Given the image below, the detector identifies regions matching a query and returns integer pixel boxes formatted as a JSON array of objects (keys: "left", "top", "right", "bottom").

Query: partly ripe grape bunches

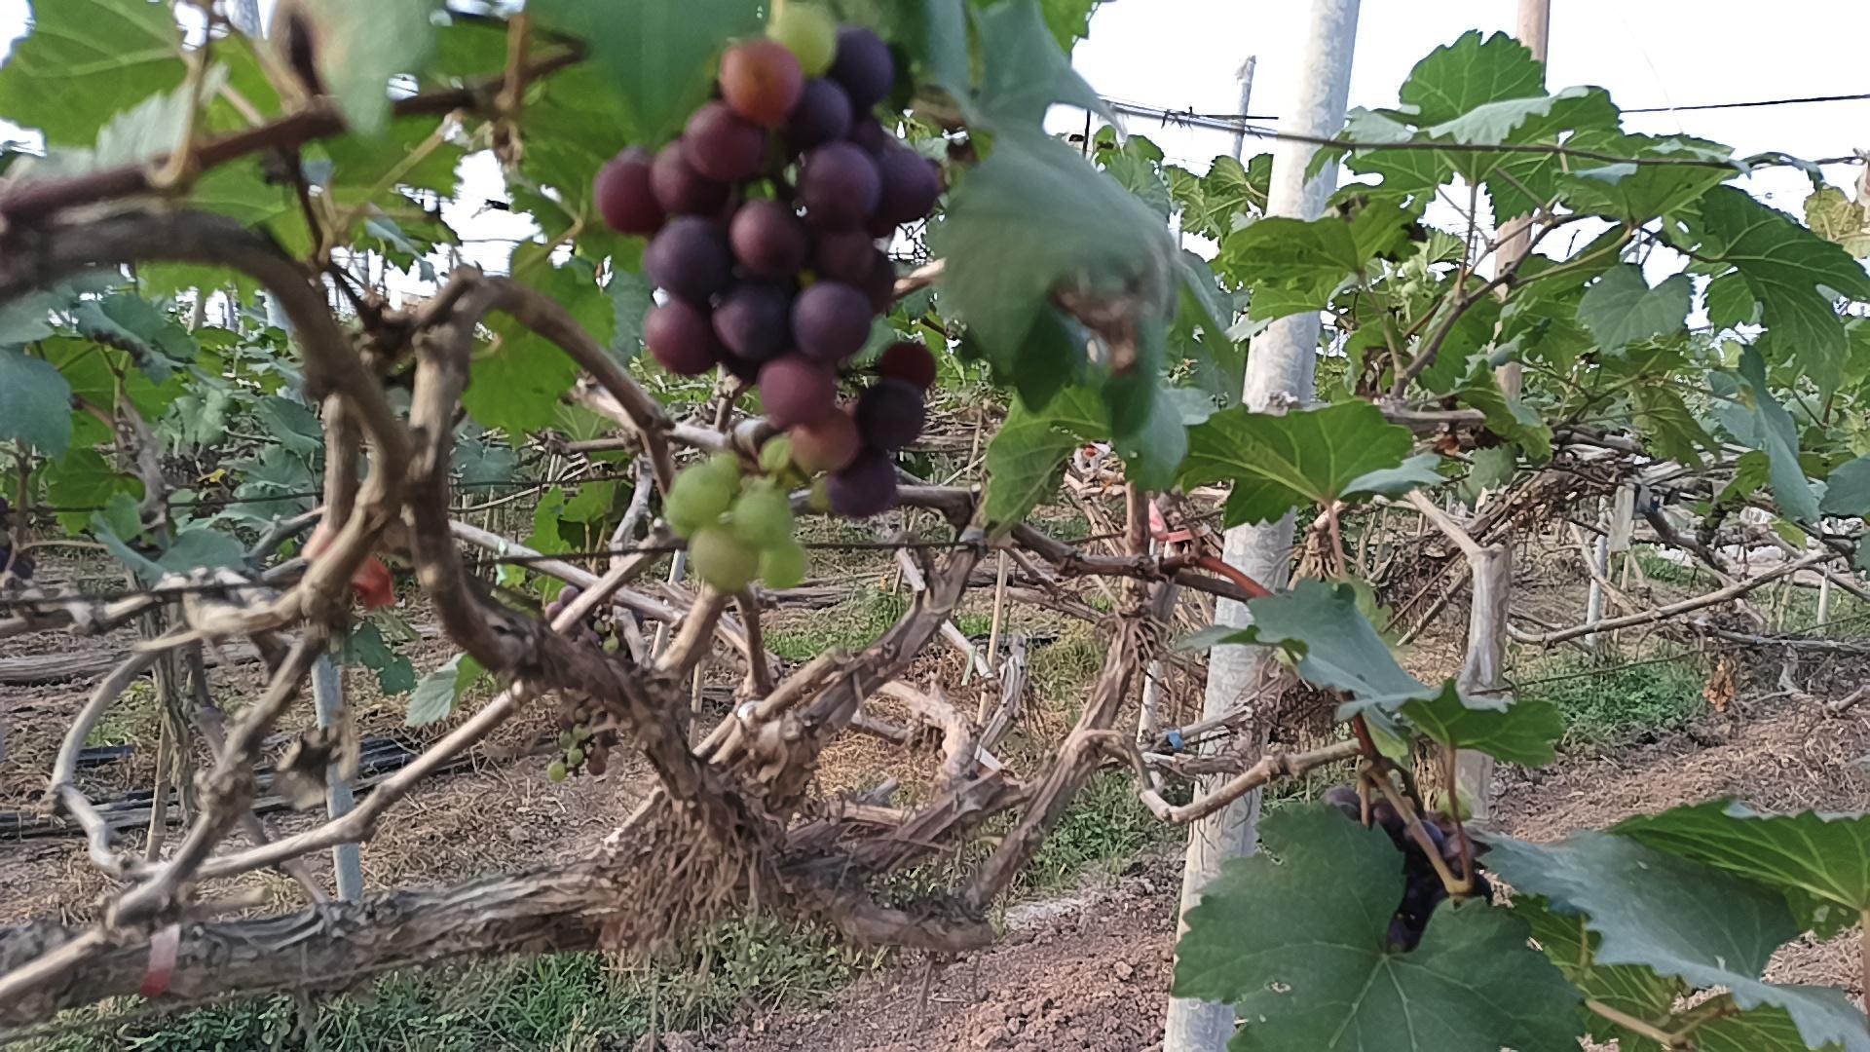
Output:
[
  {"left": 594, "top": 5, "right": 940, "bottom": 593},
  {"left": 1321, "top": 788, "right": 1493, "bottom": 951}
]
